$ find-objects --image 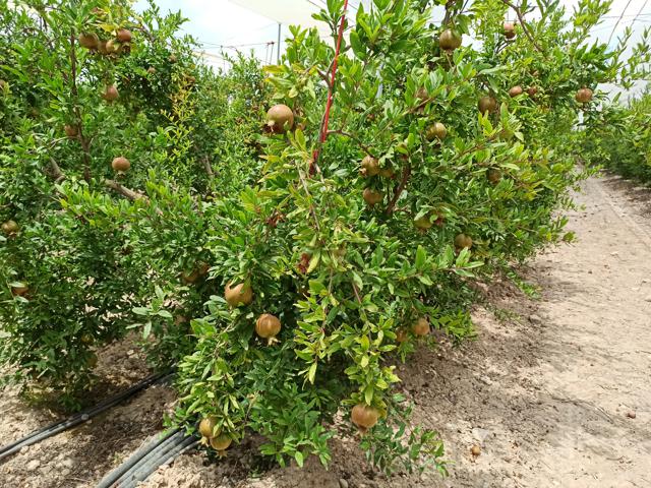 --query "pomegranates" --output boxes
[379,169,397,179]
[87,357,100,368]
[197,417,222,448]
[508,85,523,98]
[454,233,472,254]
[105,39,122,56]
[98,40,111,56]
[414,320,429,334]
[395,328,408,343]
[64,124,78,136]
[351,403,378,439]
[168,56,177,64]
[478,97,496,115]
[0,220,18,237]
[502,23,516,39]
[358,156,381,177]
[224,280,253,306]
[296,252,311,273]
[209,437,232,459]
[78,33,100,55]
[12,286,33,300]
[116,28,132,53]
[425,122,447,142]
[414,219,433,236]
[254,313,282,346]
[362,186,383,208]
[576,87,593,107]
[438,28,462,56]
[486,171,501,184]
[104,86,119,106]
[112,157,130,179]
[197,265,209,276]
[262,103,294,135]
[183,270,198,283]
[415,88,430,115]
